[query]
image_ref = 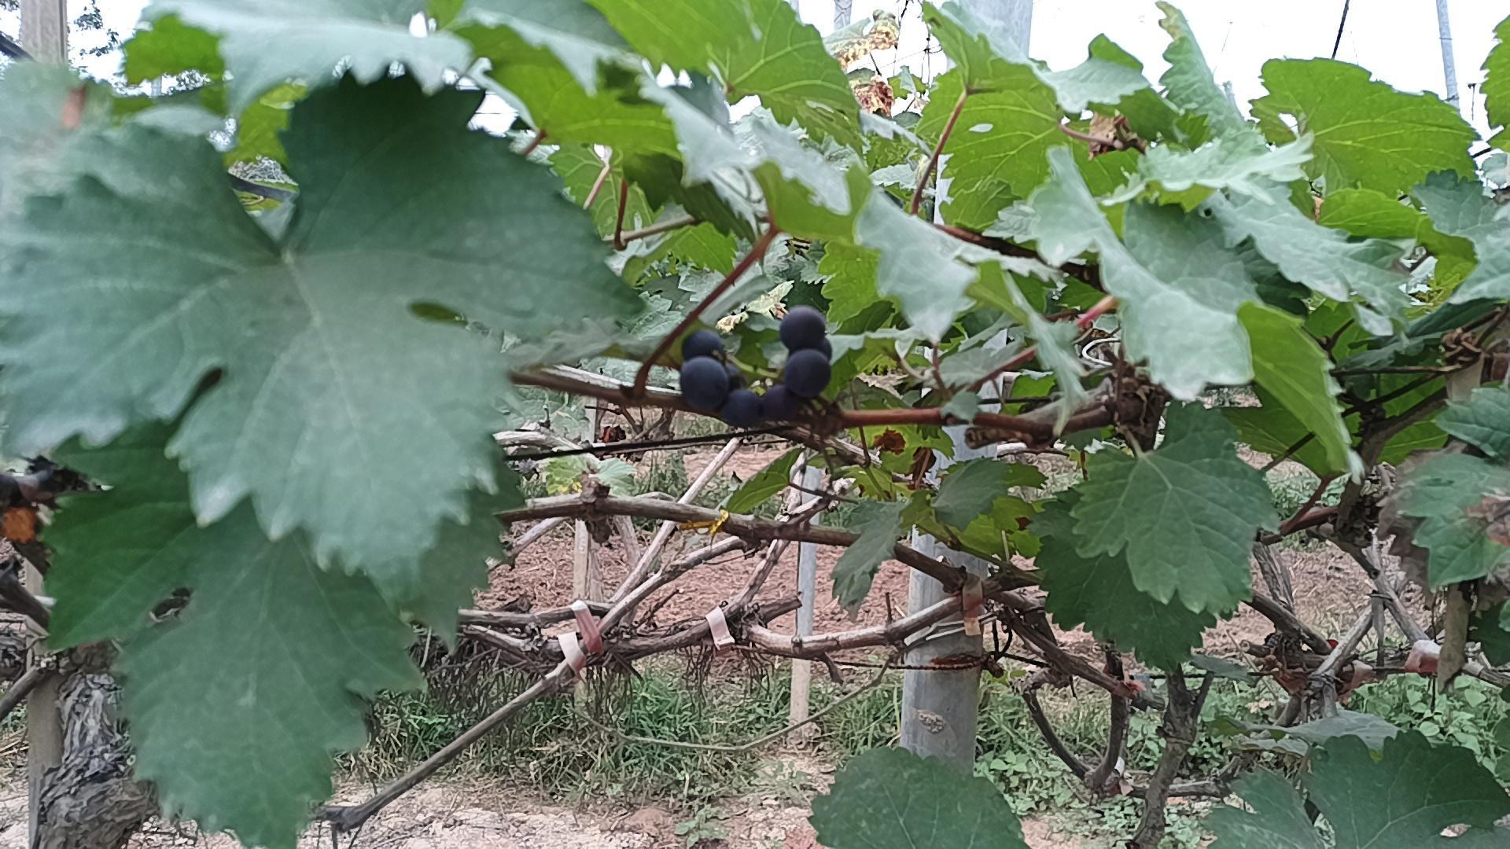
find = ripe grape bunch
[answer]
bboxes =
[679,306,832,428]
